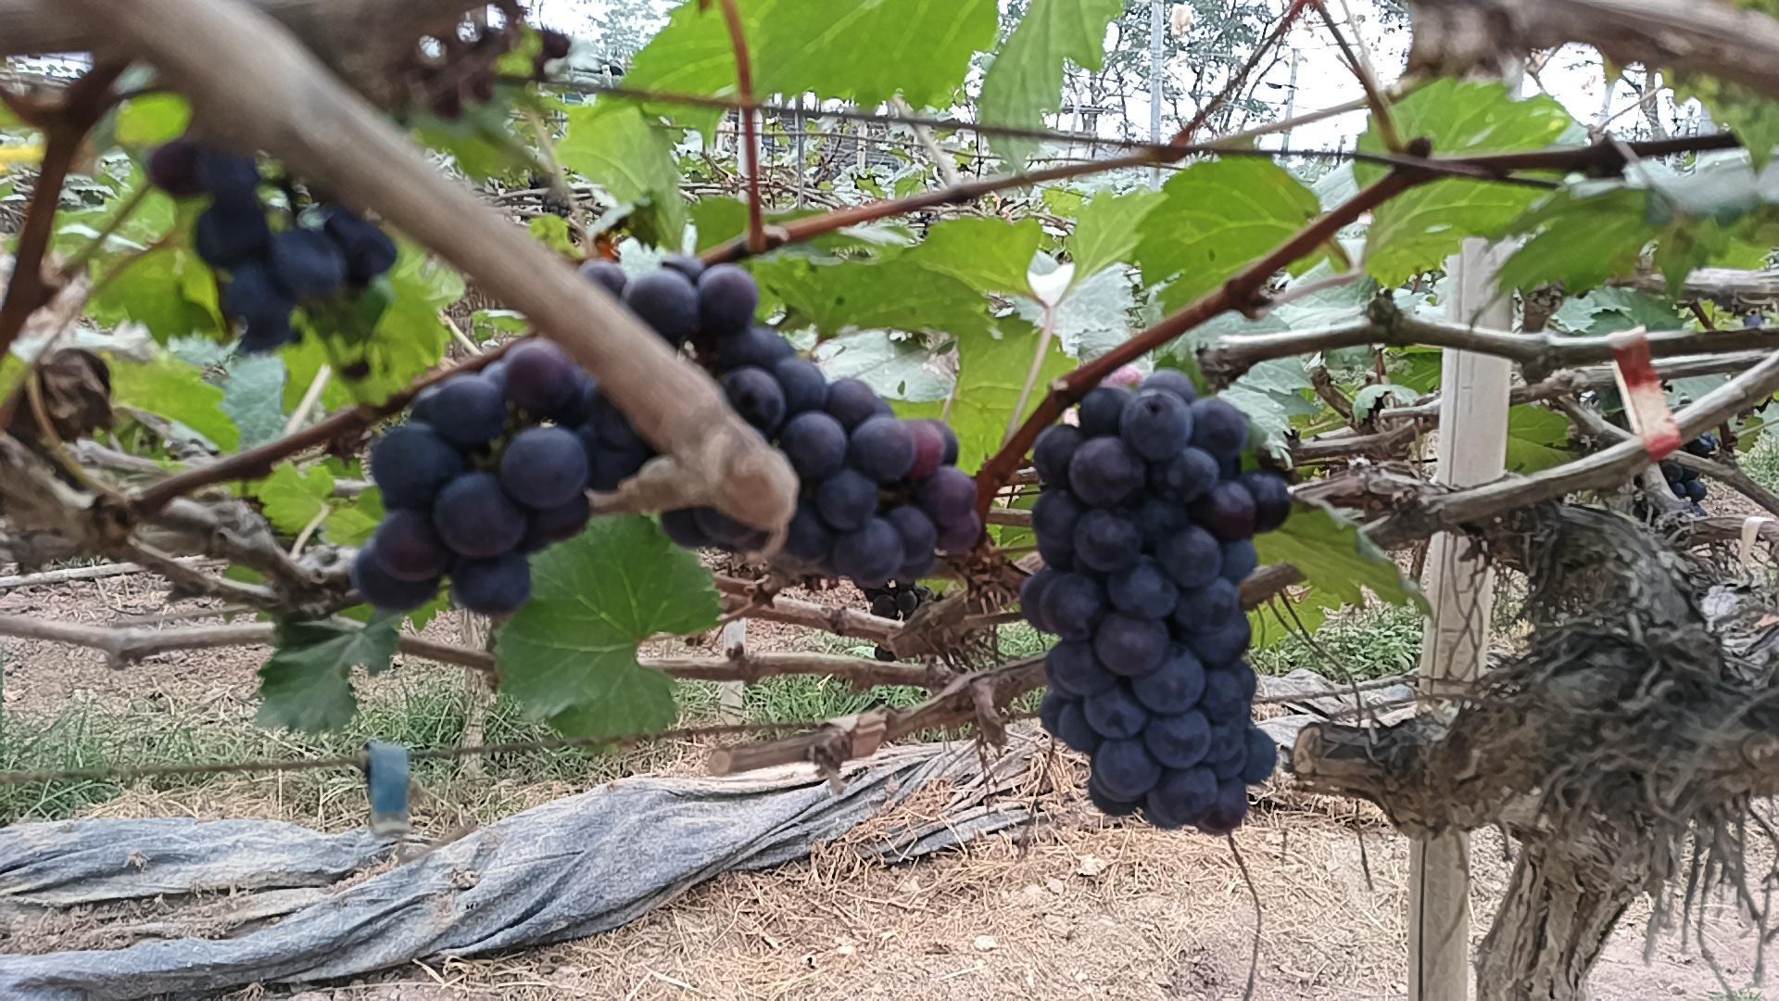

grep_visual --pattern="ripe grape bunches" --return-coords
[1022,363,1293,832]
[356,256,985,612]
[861,580,936,663]
[146,126,397,353]
[1631,433,1722,523]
